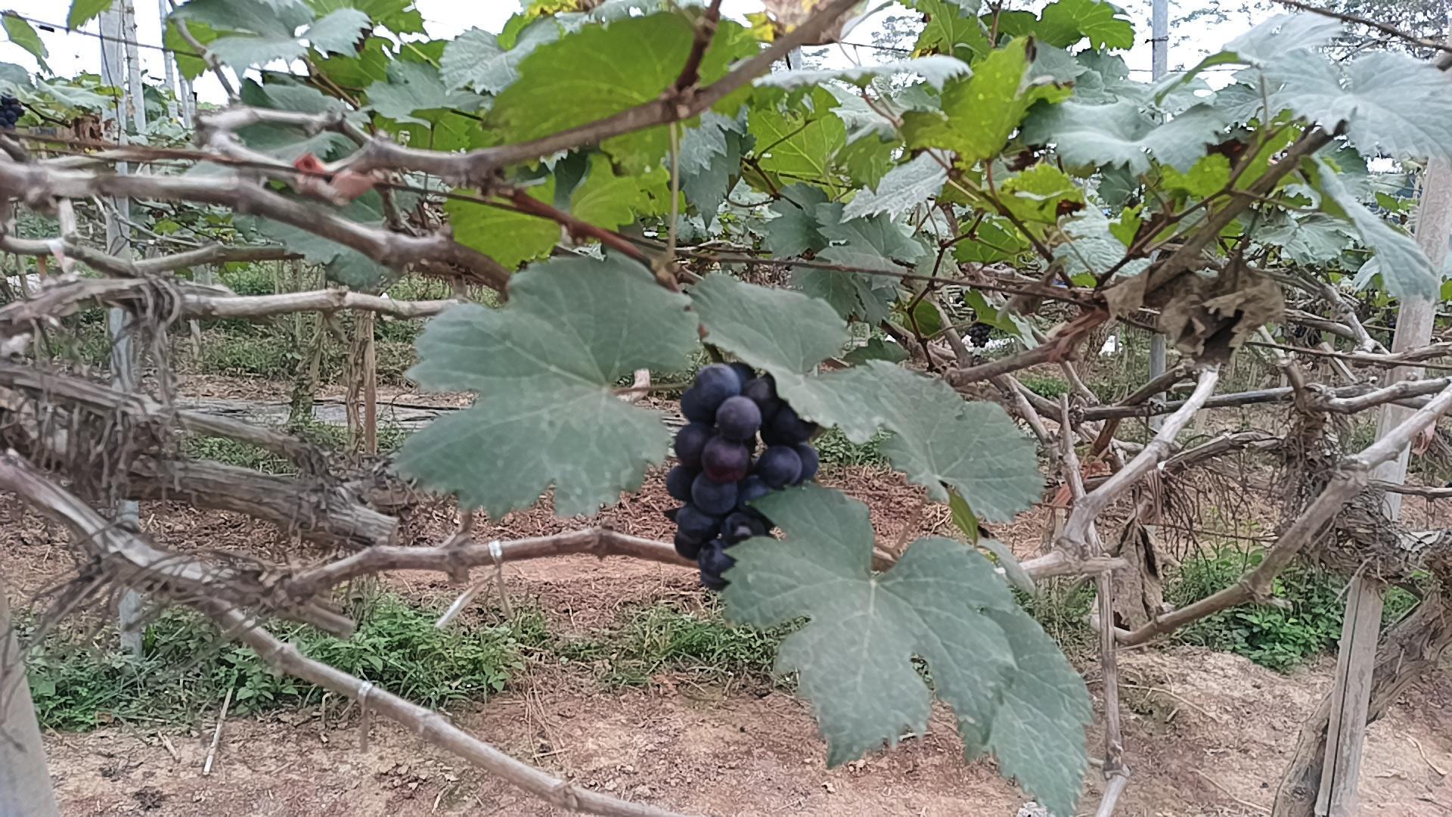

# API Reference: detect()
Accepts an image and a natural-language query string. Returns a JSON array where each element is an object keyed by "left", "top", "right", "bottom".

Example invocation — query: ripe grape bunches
[
  {"left": 0, "top": 89, "right": 30, "bottom": 131},
  {"left": 665, "top": 362, "right": 818, "bottom": 590},
  {"left": 966, "top": 314, "right": 994, "bottom": 347}
]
